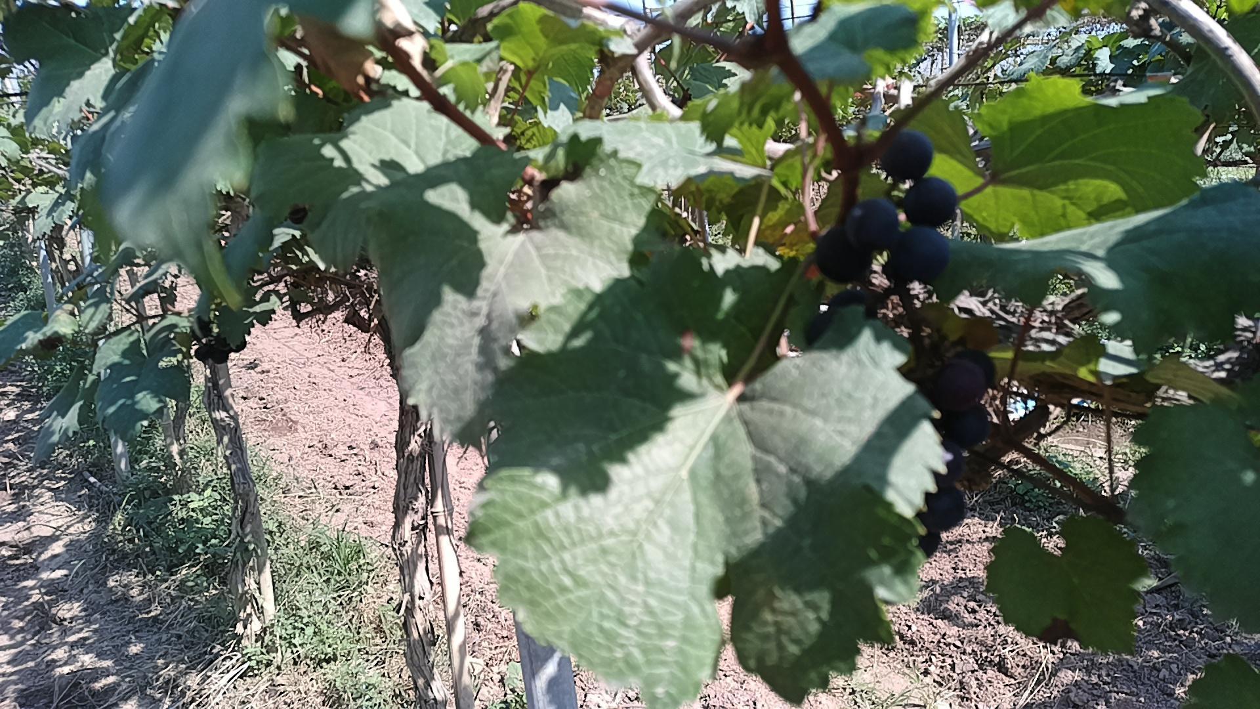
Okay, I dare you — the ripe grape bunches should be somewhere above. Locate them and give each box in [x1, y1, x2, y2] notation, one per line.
[195, 317, 245, 364]
[806, 129, 995, 555]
